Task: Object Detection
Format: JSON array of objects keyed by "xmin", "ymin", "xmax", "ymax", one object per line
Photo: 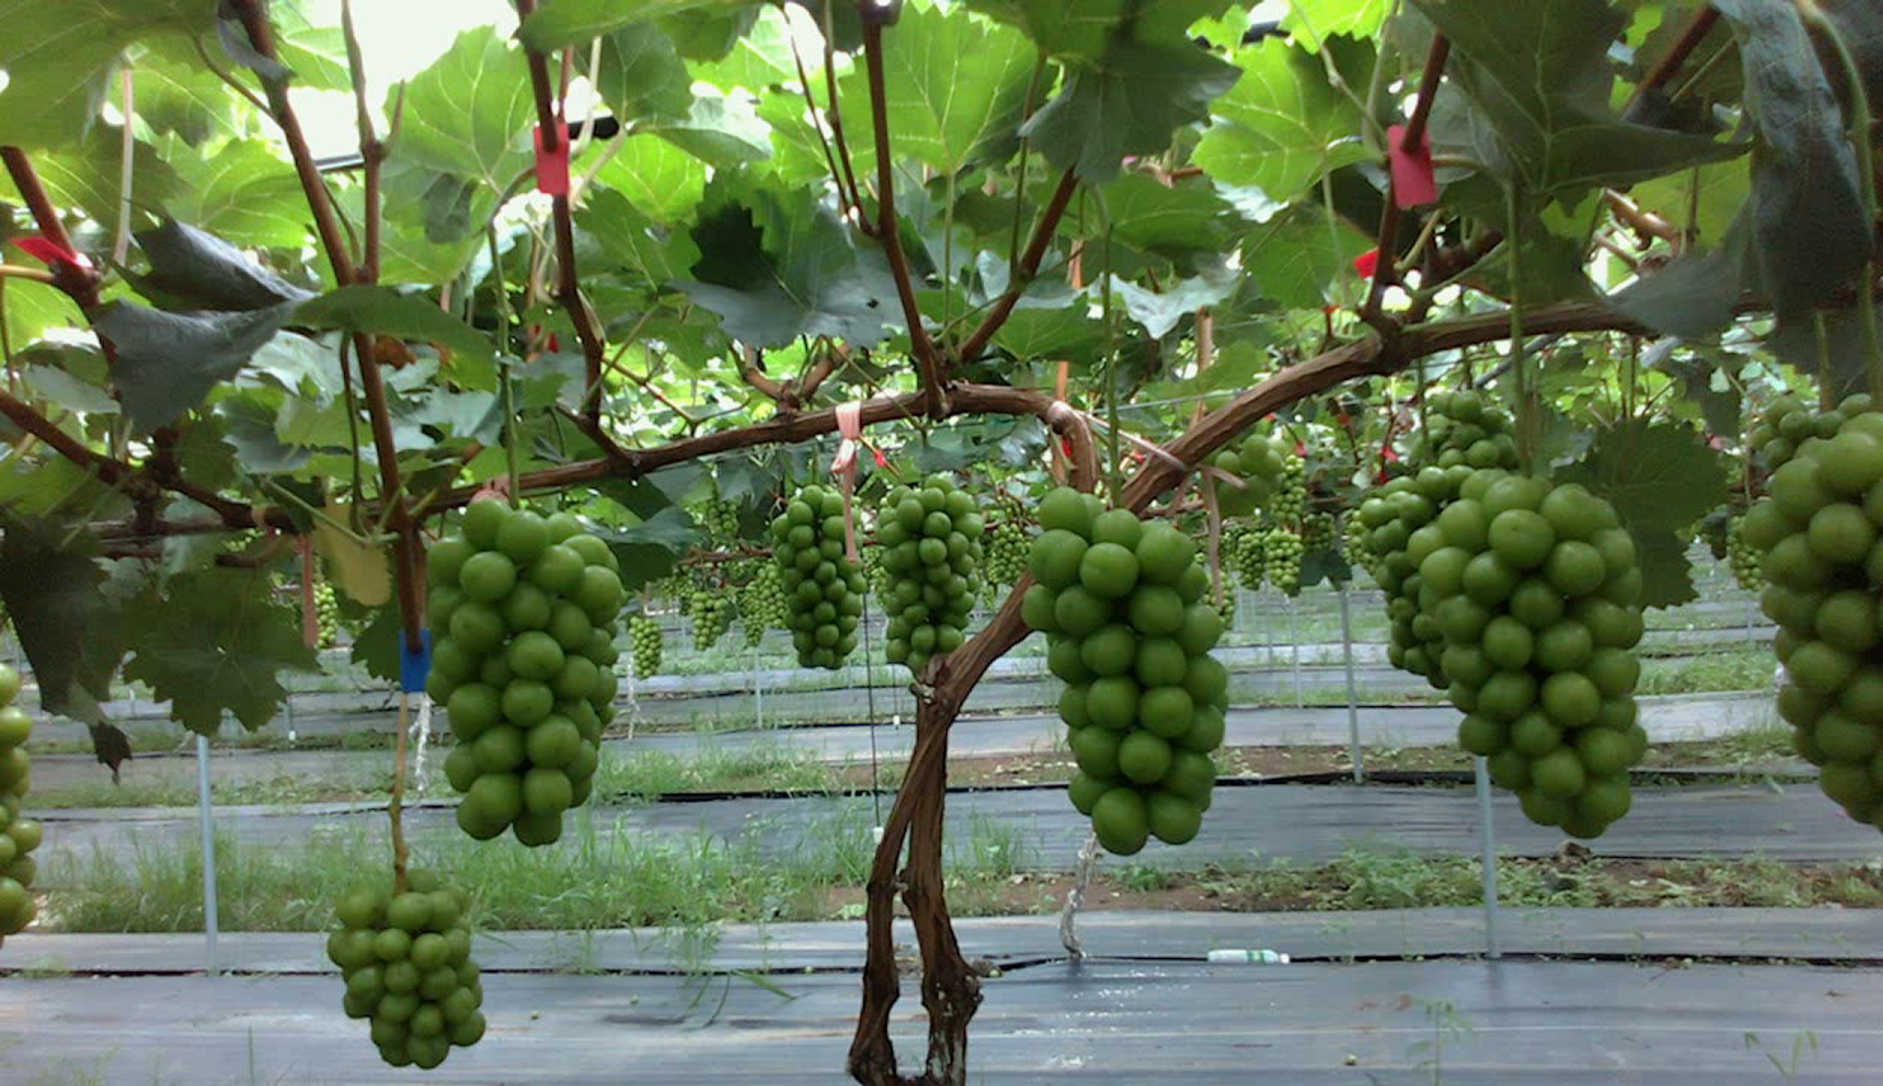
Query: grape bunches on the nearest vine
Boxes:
[
  {"xmin": 424, "ymin": 499, "xmax": 628, "ymax": 848},
  {"xmin": 1740, "ymin": 403, "xmax": 1881, "ymax": 834},
  {"xmin": 1020, "ymin": 487, "xmax": 1228, "ymax": 855},
  {"xmin": 1406, "ymin": 468, "xmax": 1648, "ymax": 840},
  {"xmin": 326, "ymin": 867, "xmax": 486, "ymax": 1069}
]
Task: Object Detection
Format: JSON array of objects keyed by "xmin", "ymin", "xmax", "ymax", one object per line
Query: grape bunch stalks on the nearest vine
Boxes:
[
  {"xmin": 1101, "ymin": 232, "xmax": 1123, "ymax": 508},
  {"xmin": 1433, "ymin": 152, "xmax": 1534, "ymax": 475},
  {"xmin": 486, "ymin": 223, "xmax": 521, "ymax": 508},
  {"xmin": 1794, "ymin": 3, "xmax": 1881, "ymax": 409},
  {"xmin": 389, "ymin": 694, "xmax": 410, "ymax": 894}
]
